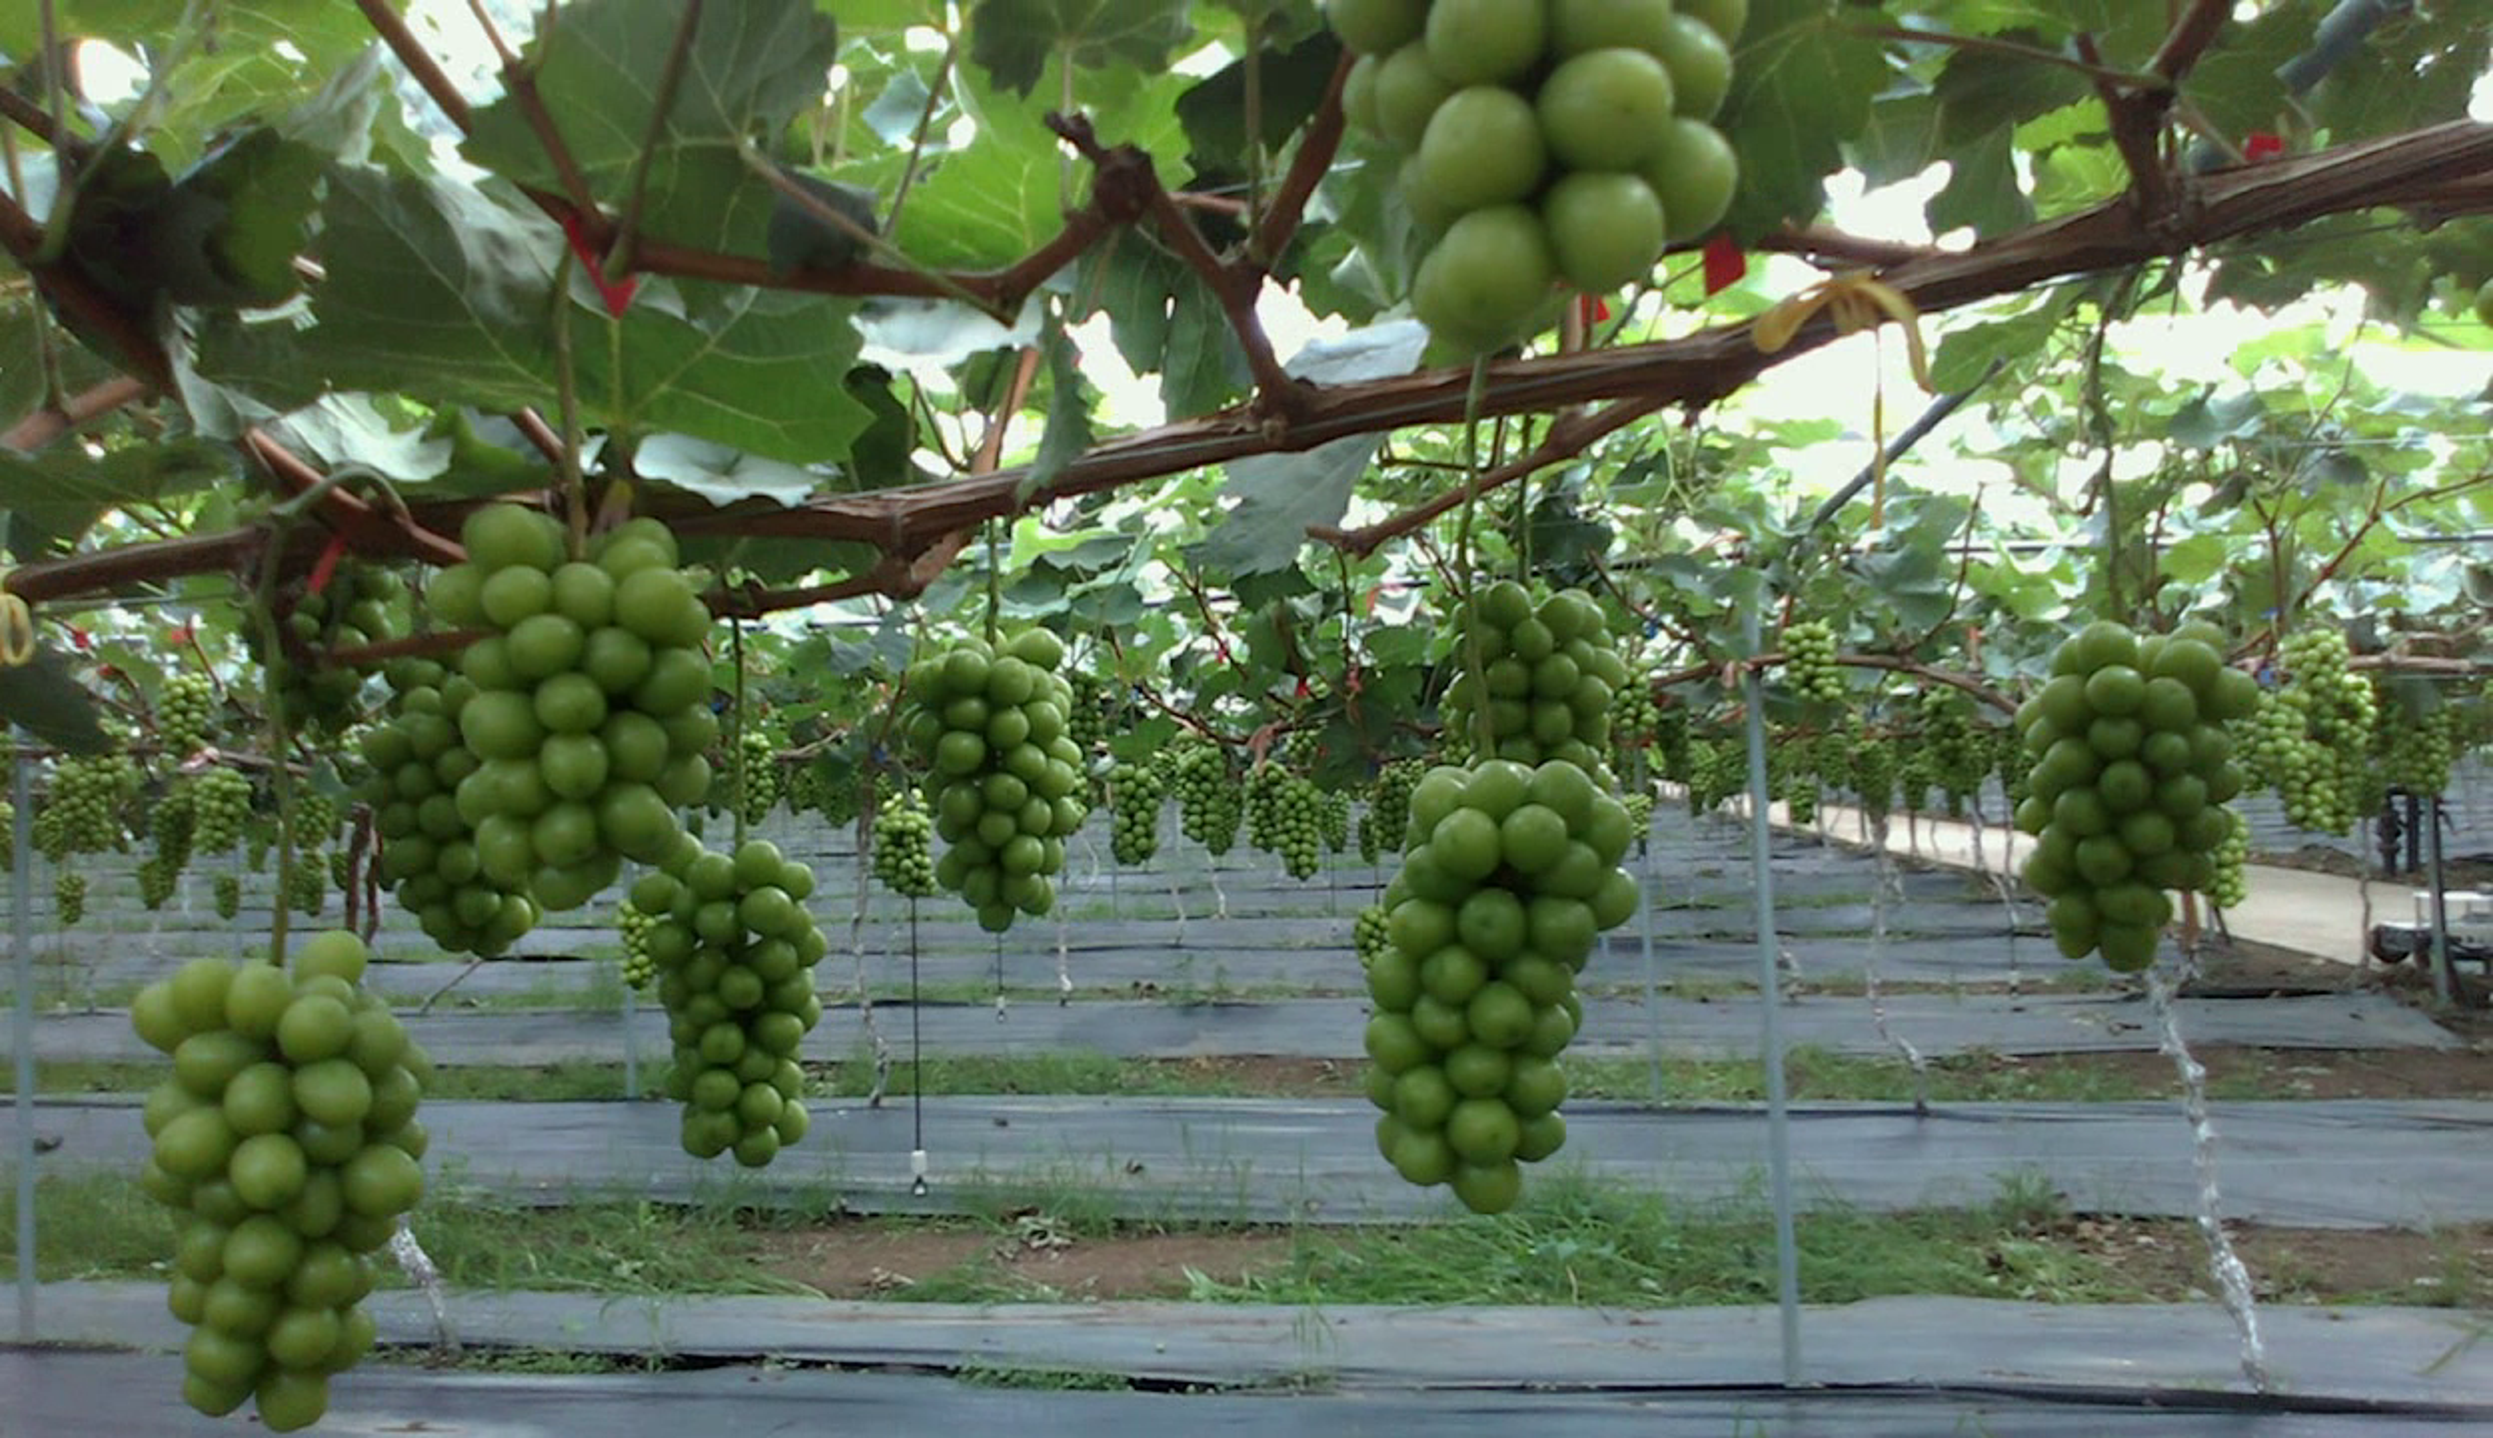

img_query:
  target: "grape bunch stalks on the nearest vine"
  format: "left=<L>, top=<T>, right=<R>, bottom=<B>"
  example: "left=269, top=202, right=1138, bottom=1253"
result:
left=549, top=242, right=585, bottom=563
left=1458, top=358, right=1496, bottom=765
left=256, top=467, right=414, bottom=969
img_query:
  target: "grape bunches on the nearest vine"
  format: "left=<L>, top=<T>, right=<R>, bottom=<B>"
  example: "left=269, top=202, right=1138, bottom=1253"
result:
left=1360, top=757, right=1636, bottom=1214
left=423, top=503, right=713, bottom=911
left=130, top=931, right=435, bottom=1432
